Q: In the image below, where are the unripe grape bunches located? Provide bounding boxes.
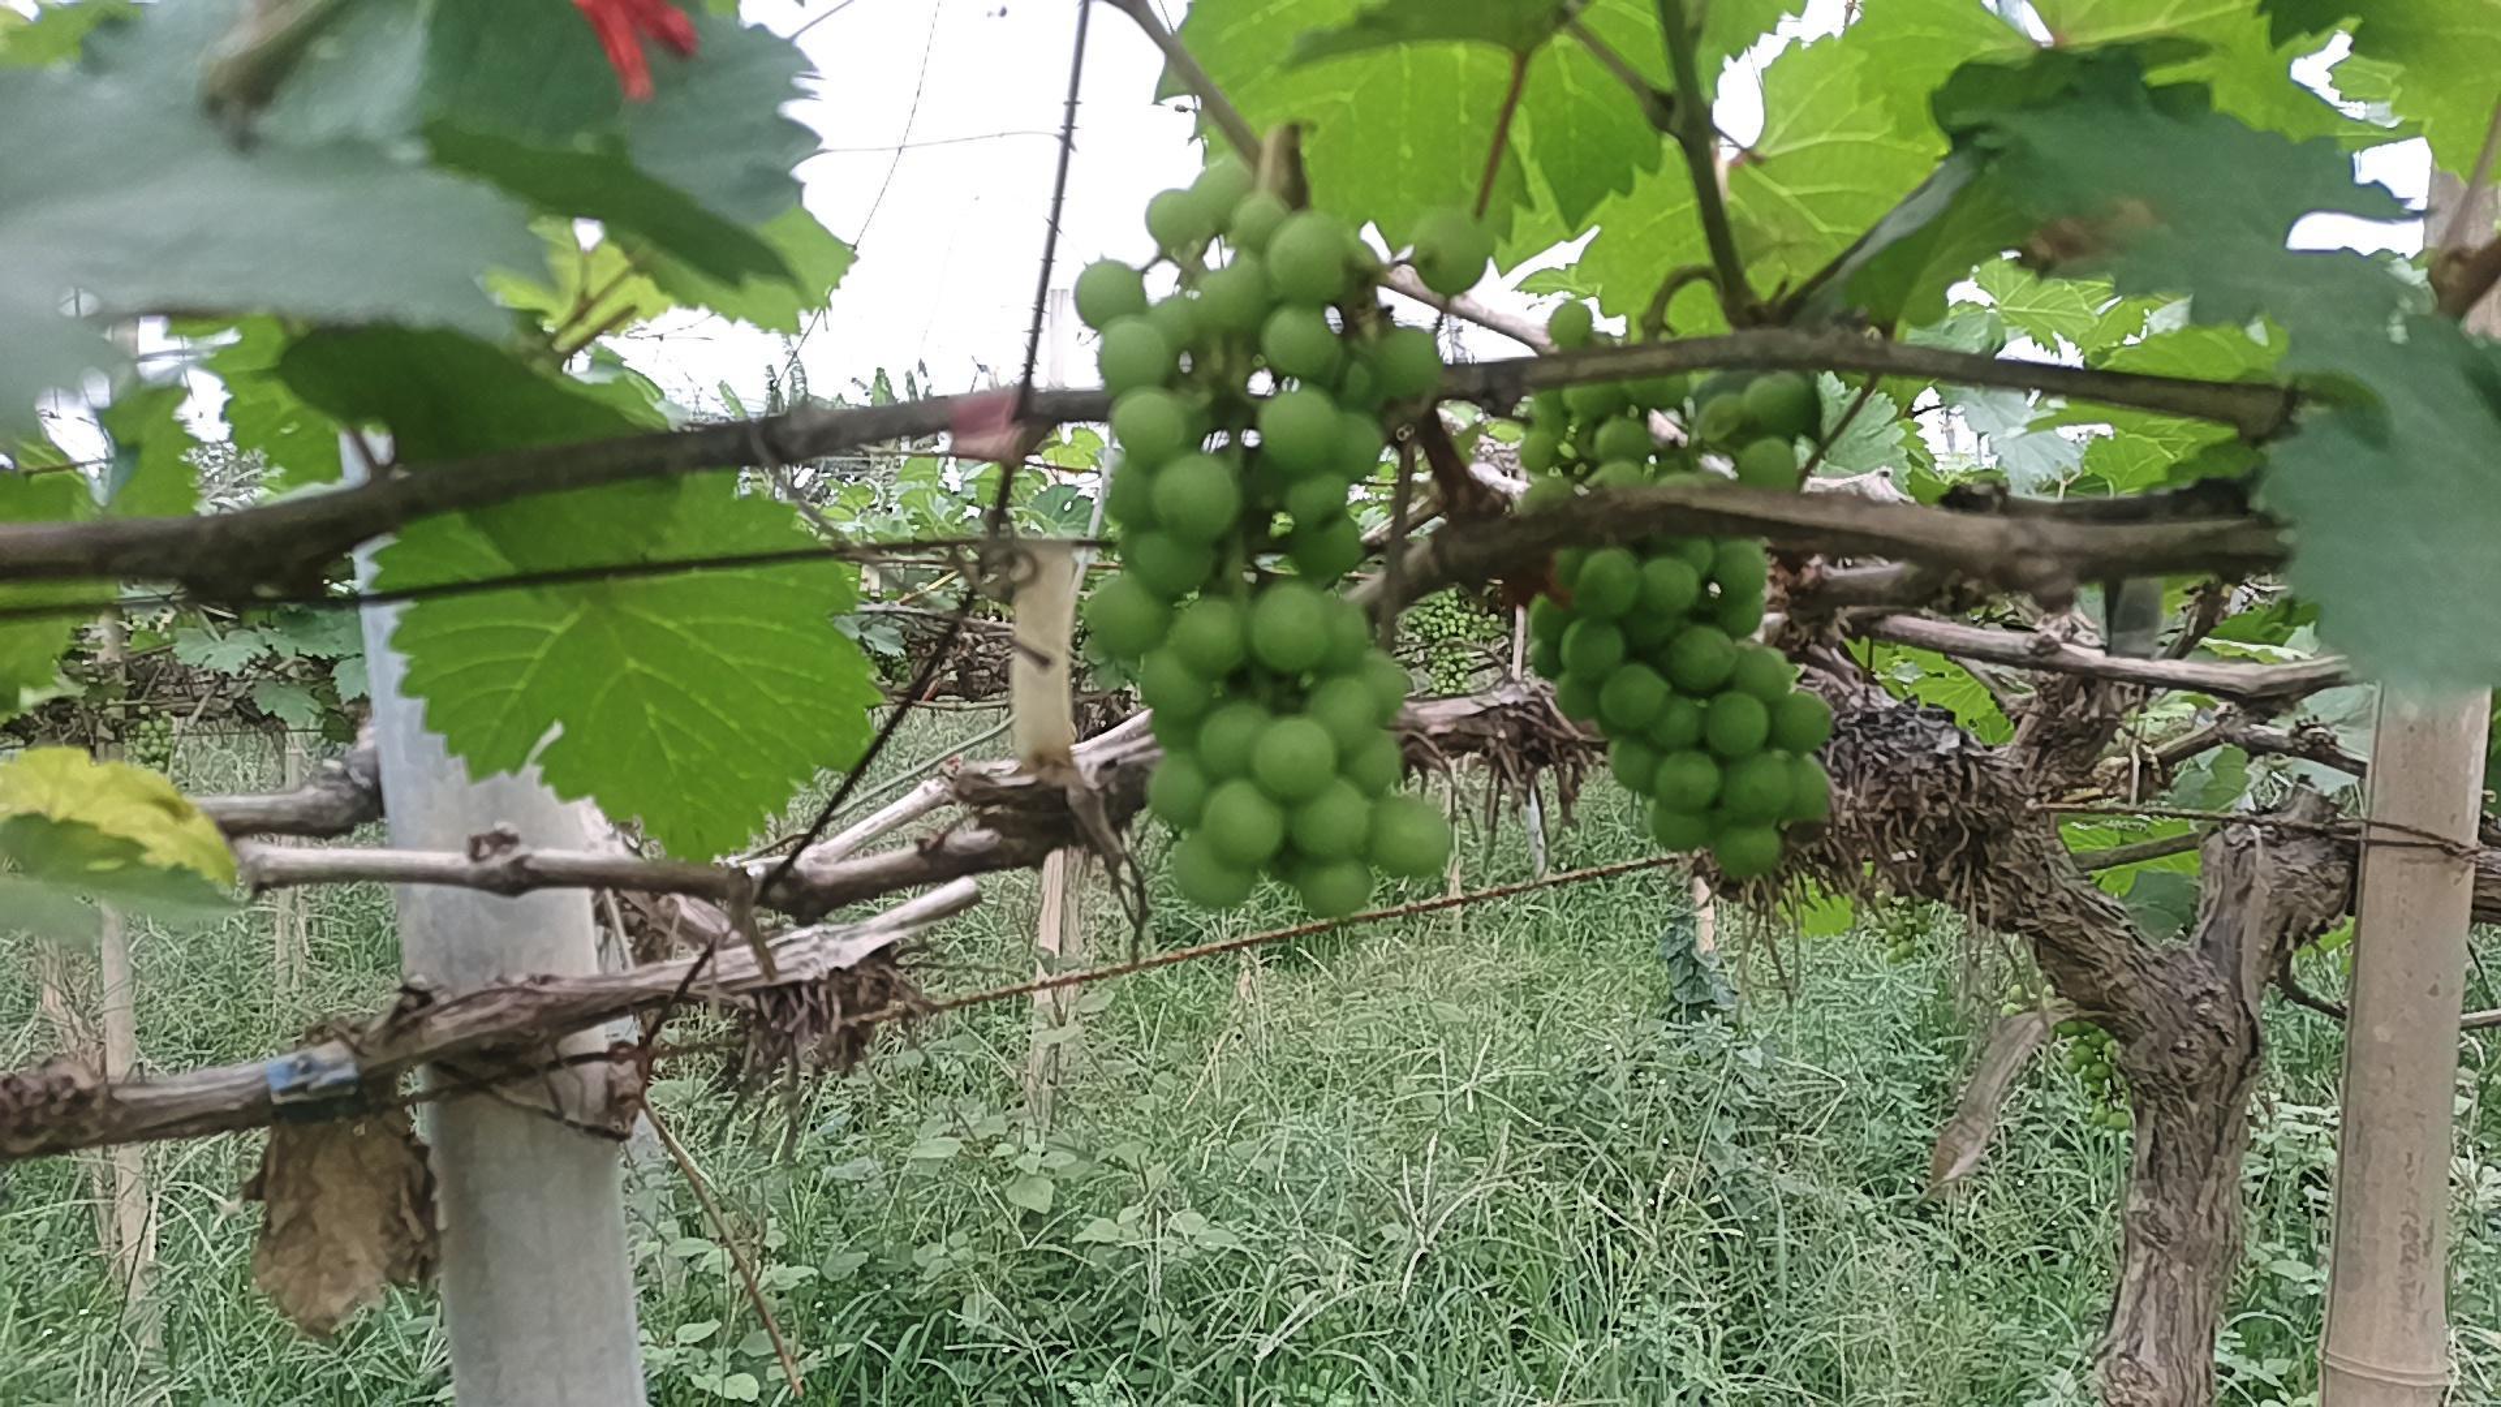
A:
[1076,163,1493,916]
[1518,307,1830,878]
